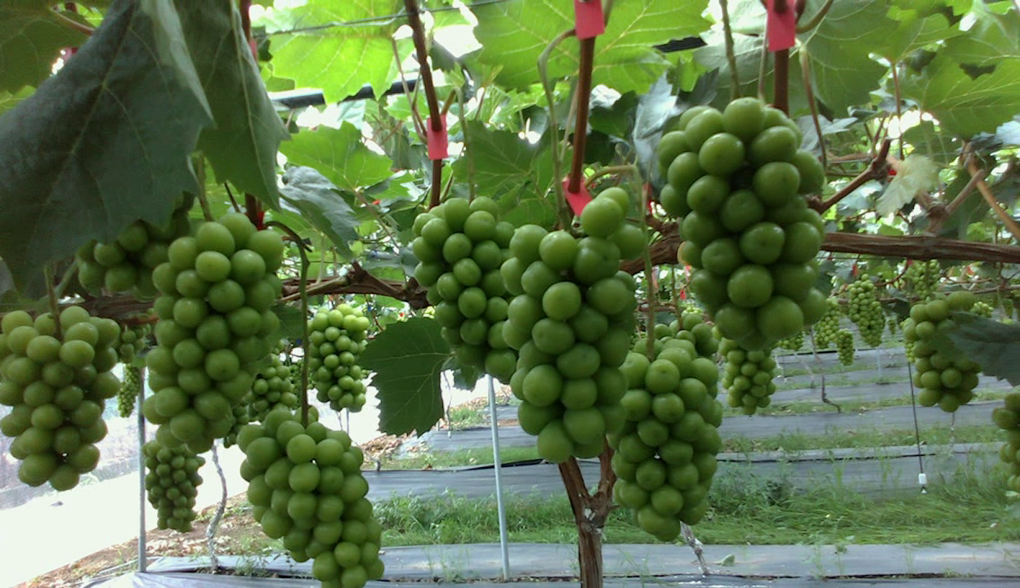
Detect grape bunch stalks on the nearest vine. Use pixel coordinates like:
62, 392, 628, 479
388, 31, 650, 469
265, 220, 310, 426
42, 264, 61, 339
537, 28, 576, 234
719, 0, 741, 100
442, 86, 475, 201
197, 155, 212, 220
584, 164, 655, 360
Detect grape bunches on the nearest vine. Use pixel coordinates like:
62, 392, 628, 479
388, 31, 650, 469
410, 194, 517, 382
656, 96, 827, 354
499, 188, 642, 464
236, 410, 385, 587
608, 341, 720, 541
0, 305, 121, 492
143, 212, 284, 453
